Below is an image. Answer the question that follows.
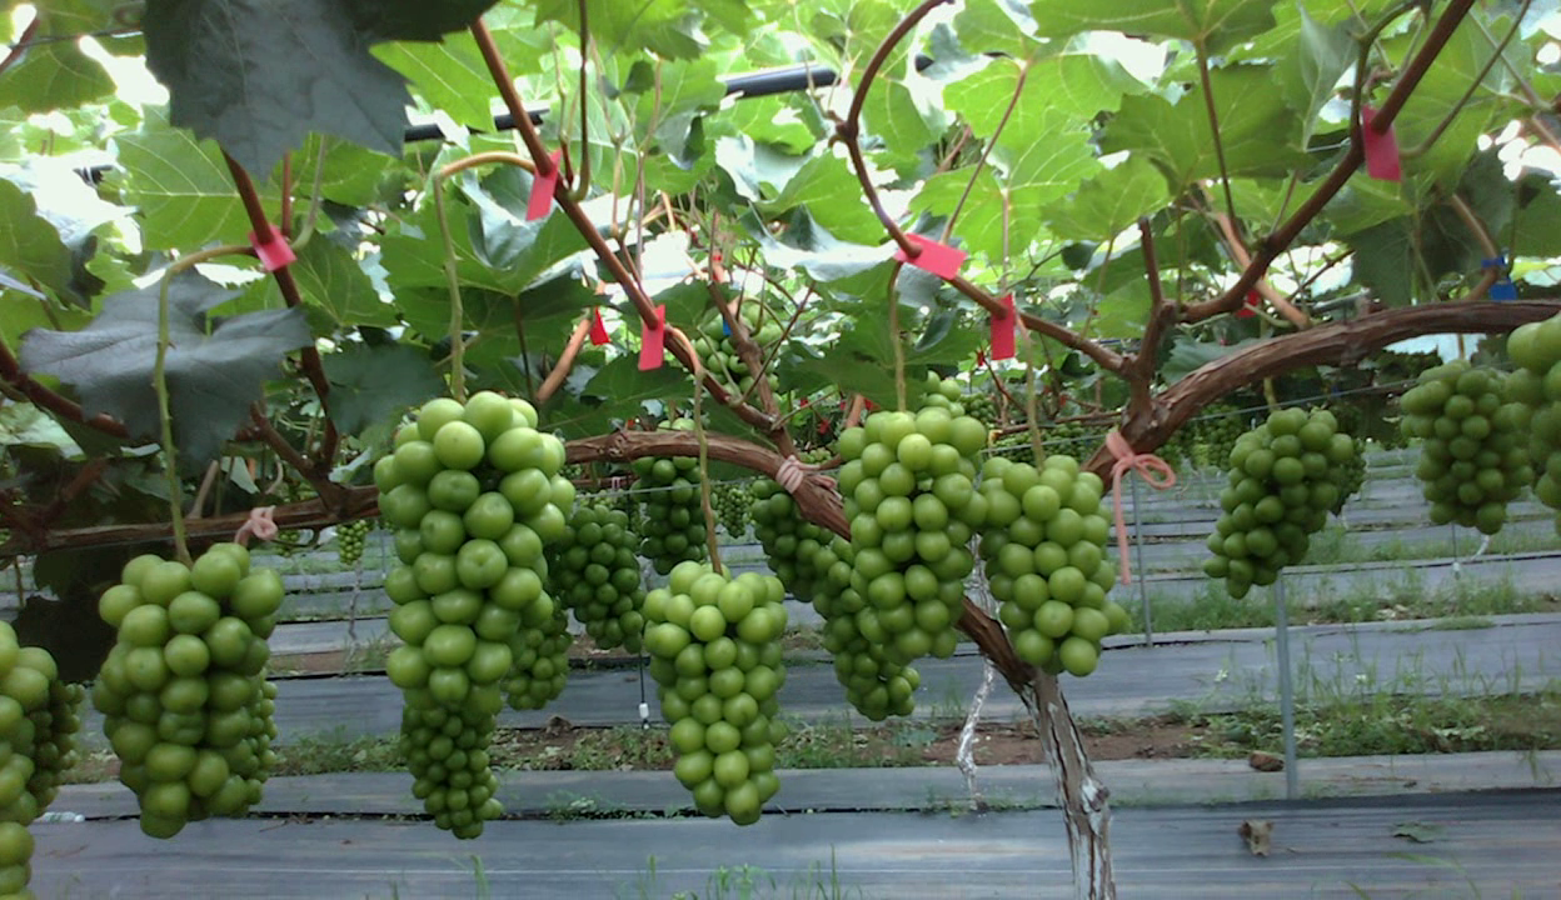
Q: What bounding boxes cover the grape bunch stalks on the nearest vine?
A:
[672,327,724,576]
[886,261,907,412]
[1014,316,1047,467]
[430,151,534,406]
[151,245,251,570]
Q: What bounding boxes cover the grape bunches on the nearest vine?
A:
[373,389,577,716]
[1,621,54,895]
[91,542,285,839]
[643,561,789,826]
[836,406,988,666]
[972,455,1127,677]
